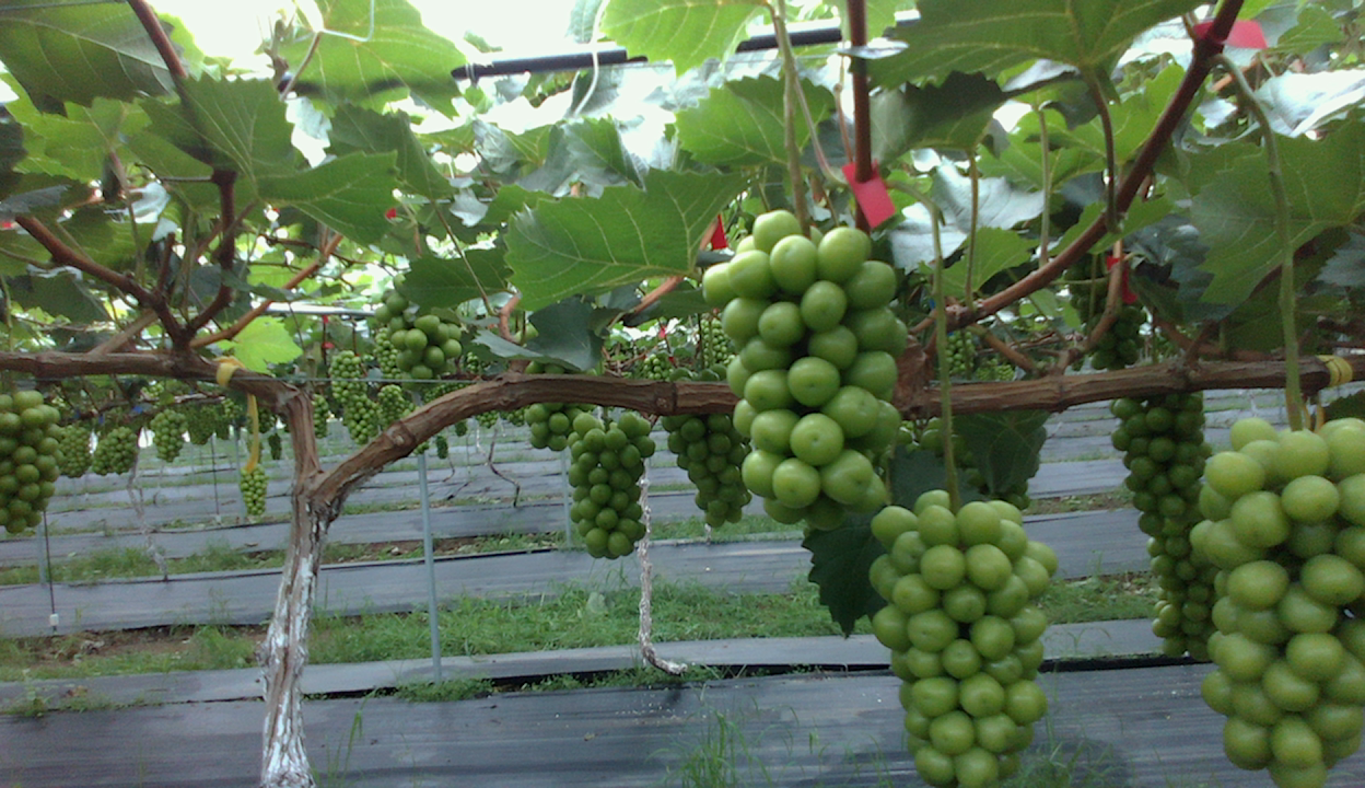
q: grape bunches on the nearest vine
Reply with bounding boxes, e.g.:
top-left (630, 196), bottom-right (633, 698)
top-left (867, 488), bottom-right (1057, 787)
top-left (703, 209), bottom-right (909, 531)
top-left (1192, 417), bottom-right (1364, 787)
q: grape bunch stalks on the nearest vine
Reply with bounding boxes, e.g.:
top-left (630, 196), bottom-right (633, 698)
top-left (1222, 59), bottom-right (1304, 429)
top-left (890, 181), bottom-right (960, 511)
top-left (775, 0), bottom-right (812, 239)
